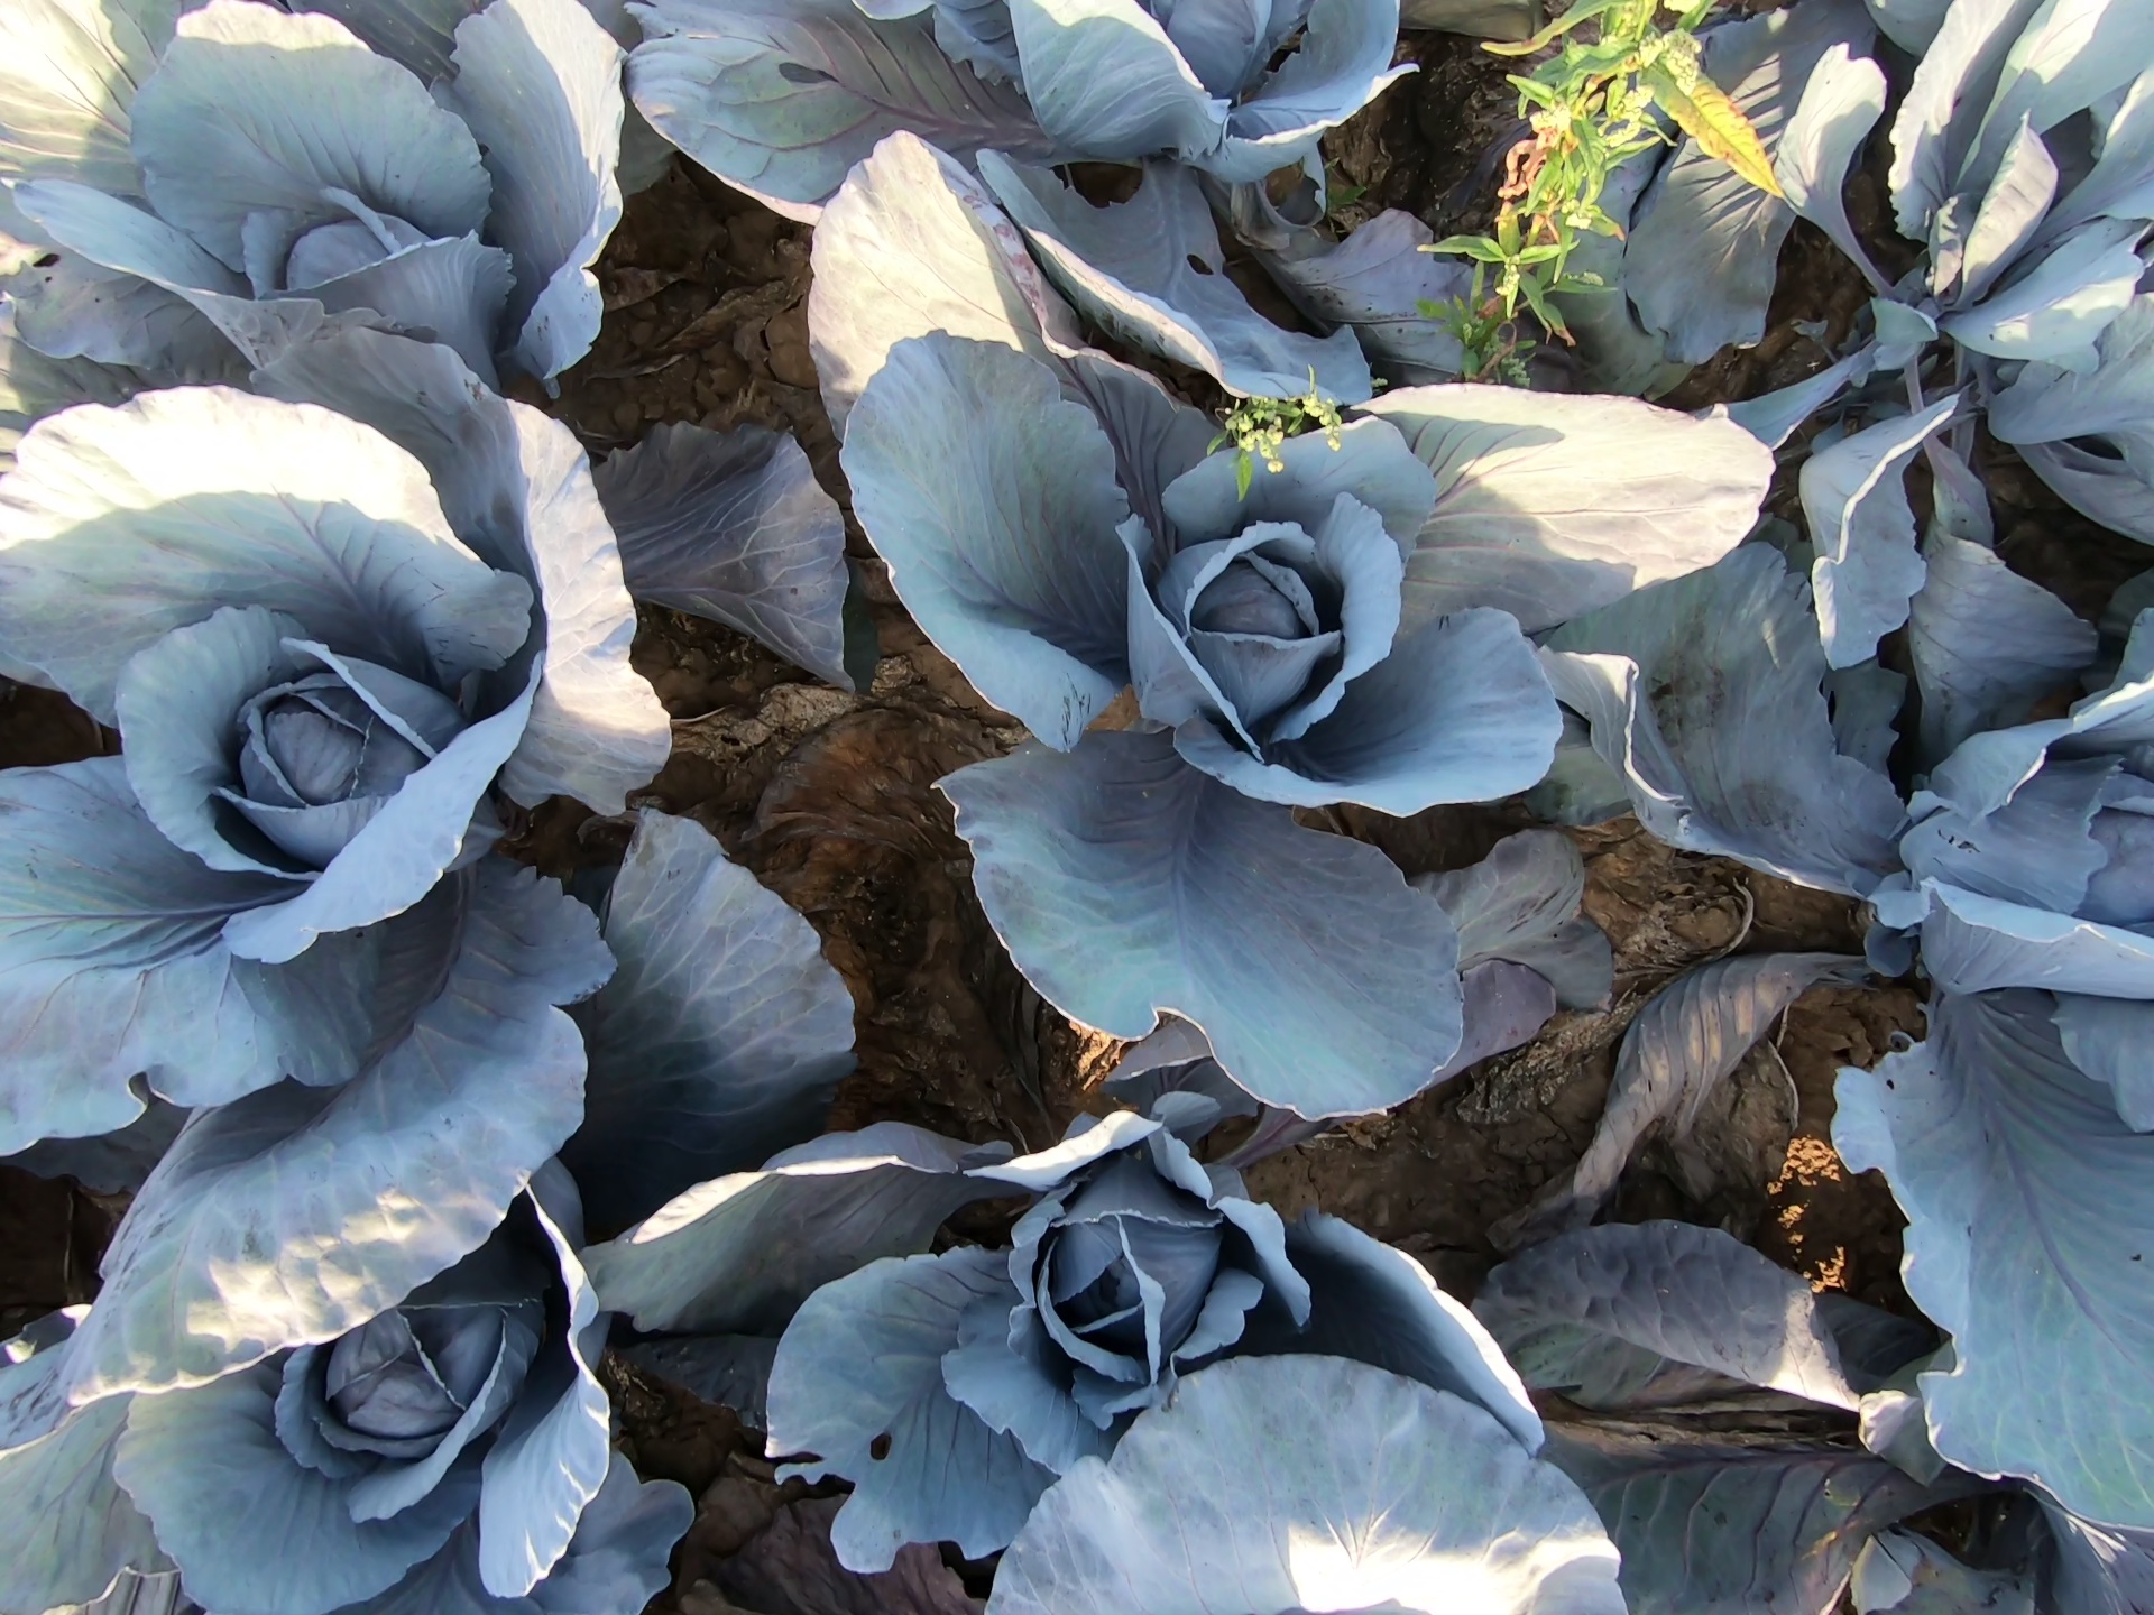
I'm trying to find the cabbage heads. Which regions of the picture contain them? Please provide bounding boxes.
[1060,1185,1207,1342]
[1116,4,1251,102]
[323,1267,542,1468]
[283,209,467,357]
[1992,769,2146,930]
[1179,556,1313,716]
[227,670,434,849]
